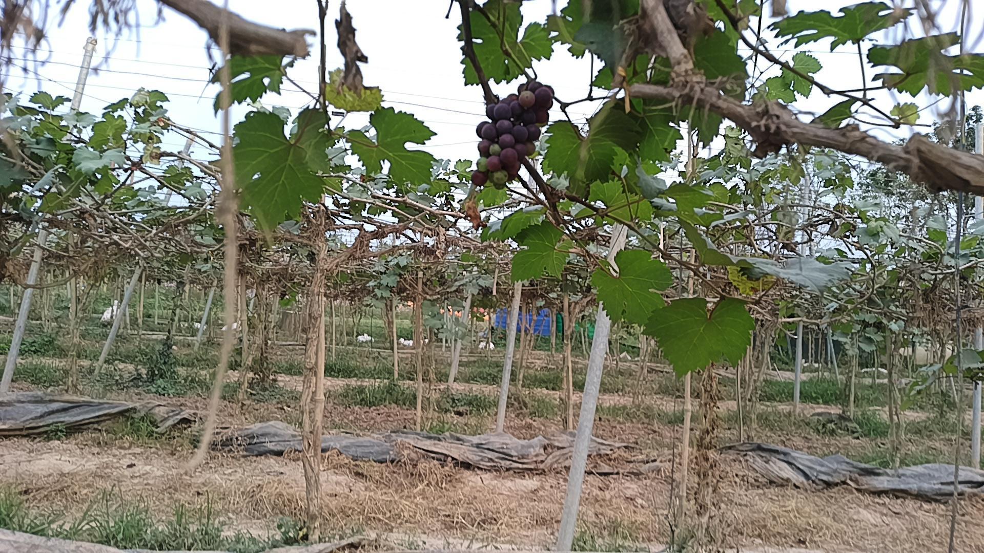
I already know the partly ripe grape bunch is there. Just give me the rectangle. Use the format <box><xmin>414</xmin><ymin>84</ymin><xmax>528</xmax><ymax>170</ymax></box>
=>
<box><xmin>471</xmin><ymin>80</ymin><xmax>553</xmax><ymax>189</ymax></box>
